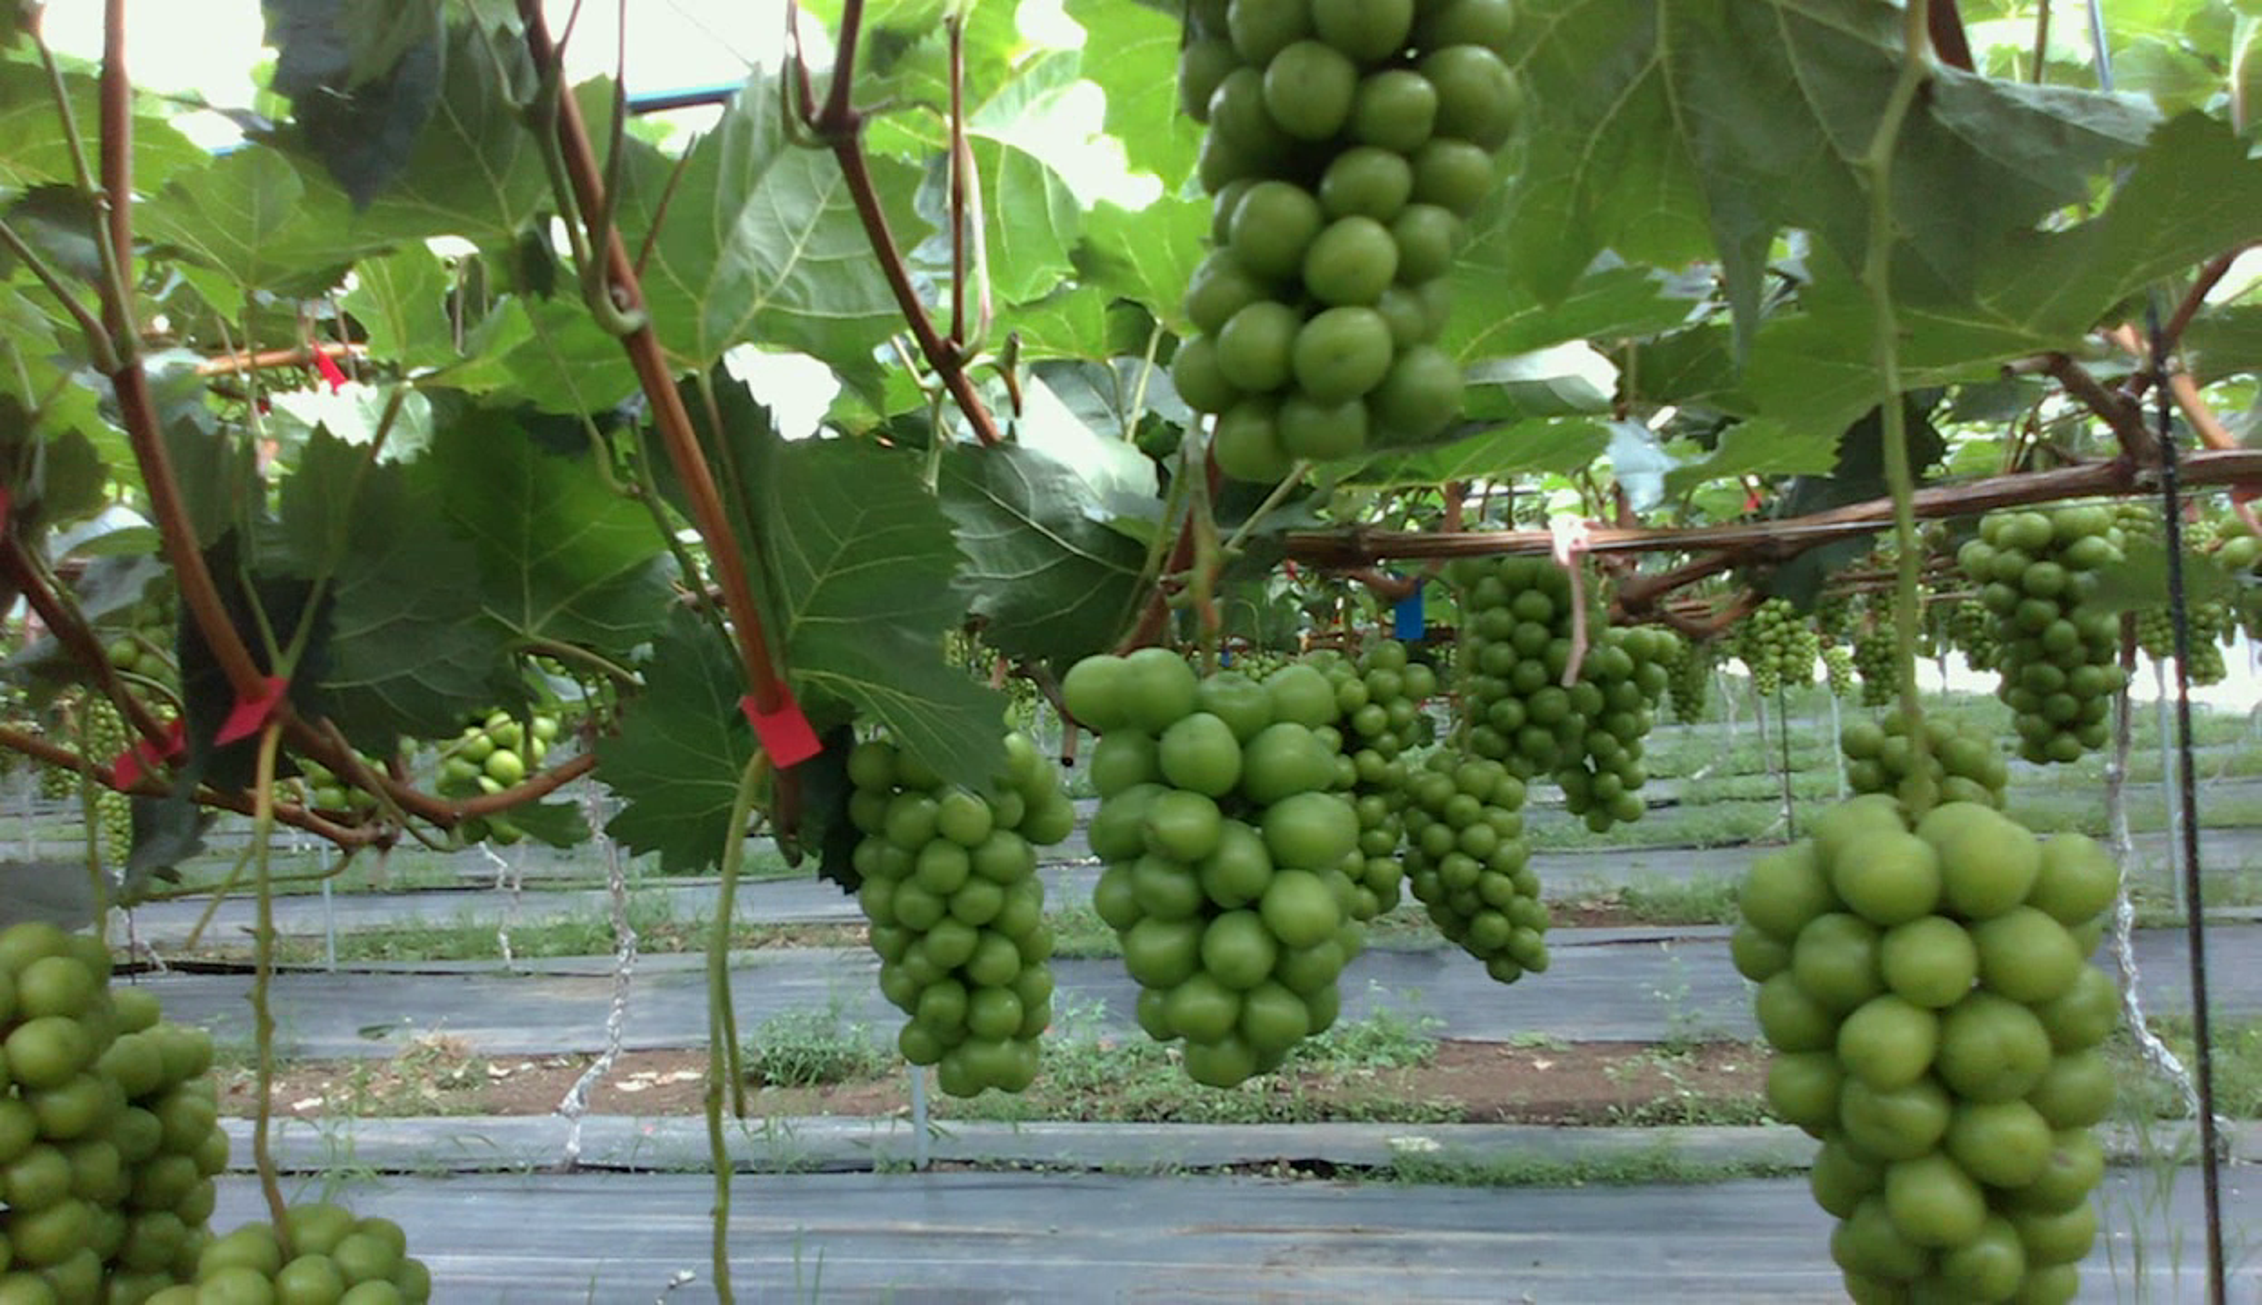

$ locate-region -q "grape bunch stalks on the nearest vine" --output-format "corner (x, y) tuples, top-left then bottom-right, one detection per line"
(1184, 411), (1225, 678)
(703, 745), (768, 1303)
(78, 678), (107, 941)
(239, 723), (297, 1267)
(1860, 2), (1932, 826)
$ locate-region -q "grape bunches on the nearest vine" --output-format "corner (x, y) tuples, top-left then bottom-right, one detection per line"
(846, 729), (1077, 1102)
(1725, 794), (2121, 1303)
(1173, 0), (1522, 488)
(141, 1203), (431, 1303)
(0, 919), (230, 1303)
(1060, 645), (1365, 1091)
